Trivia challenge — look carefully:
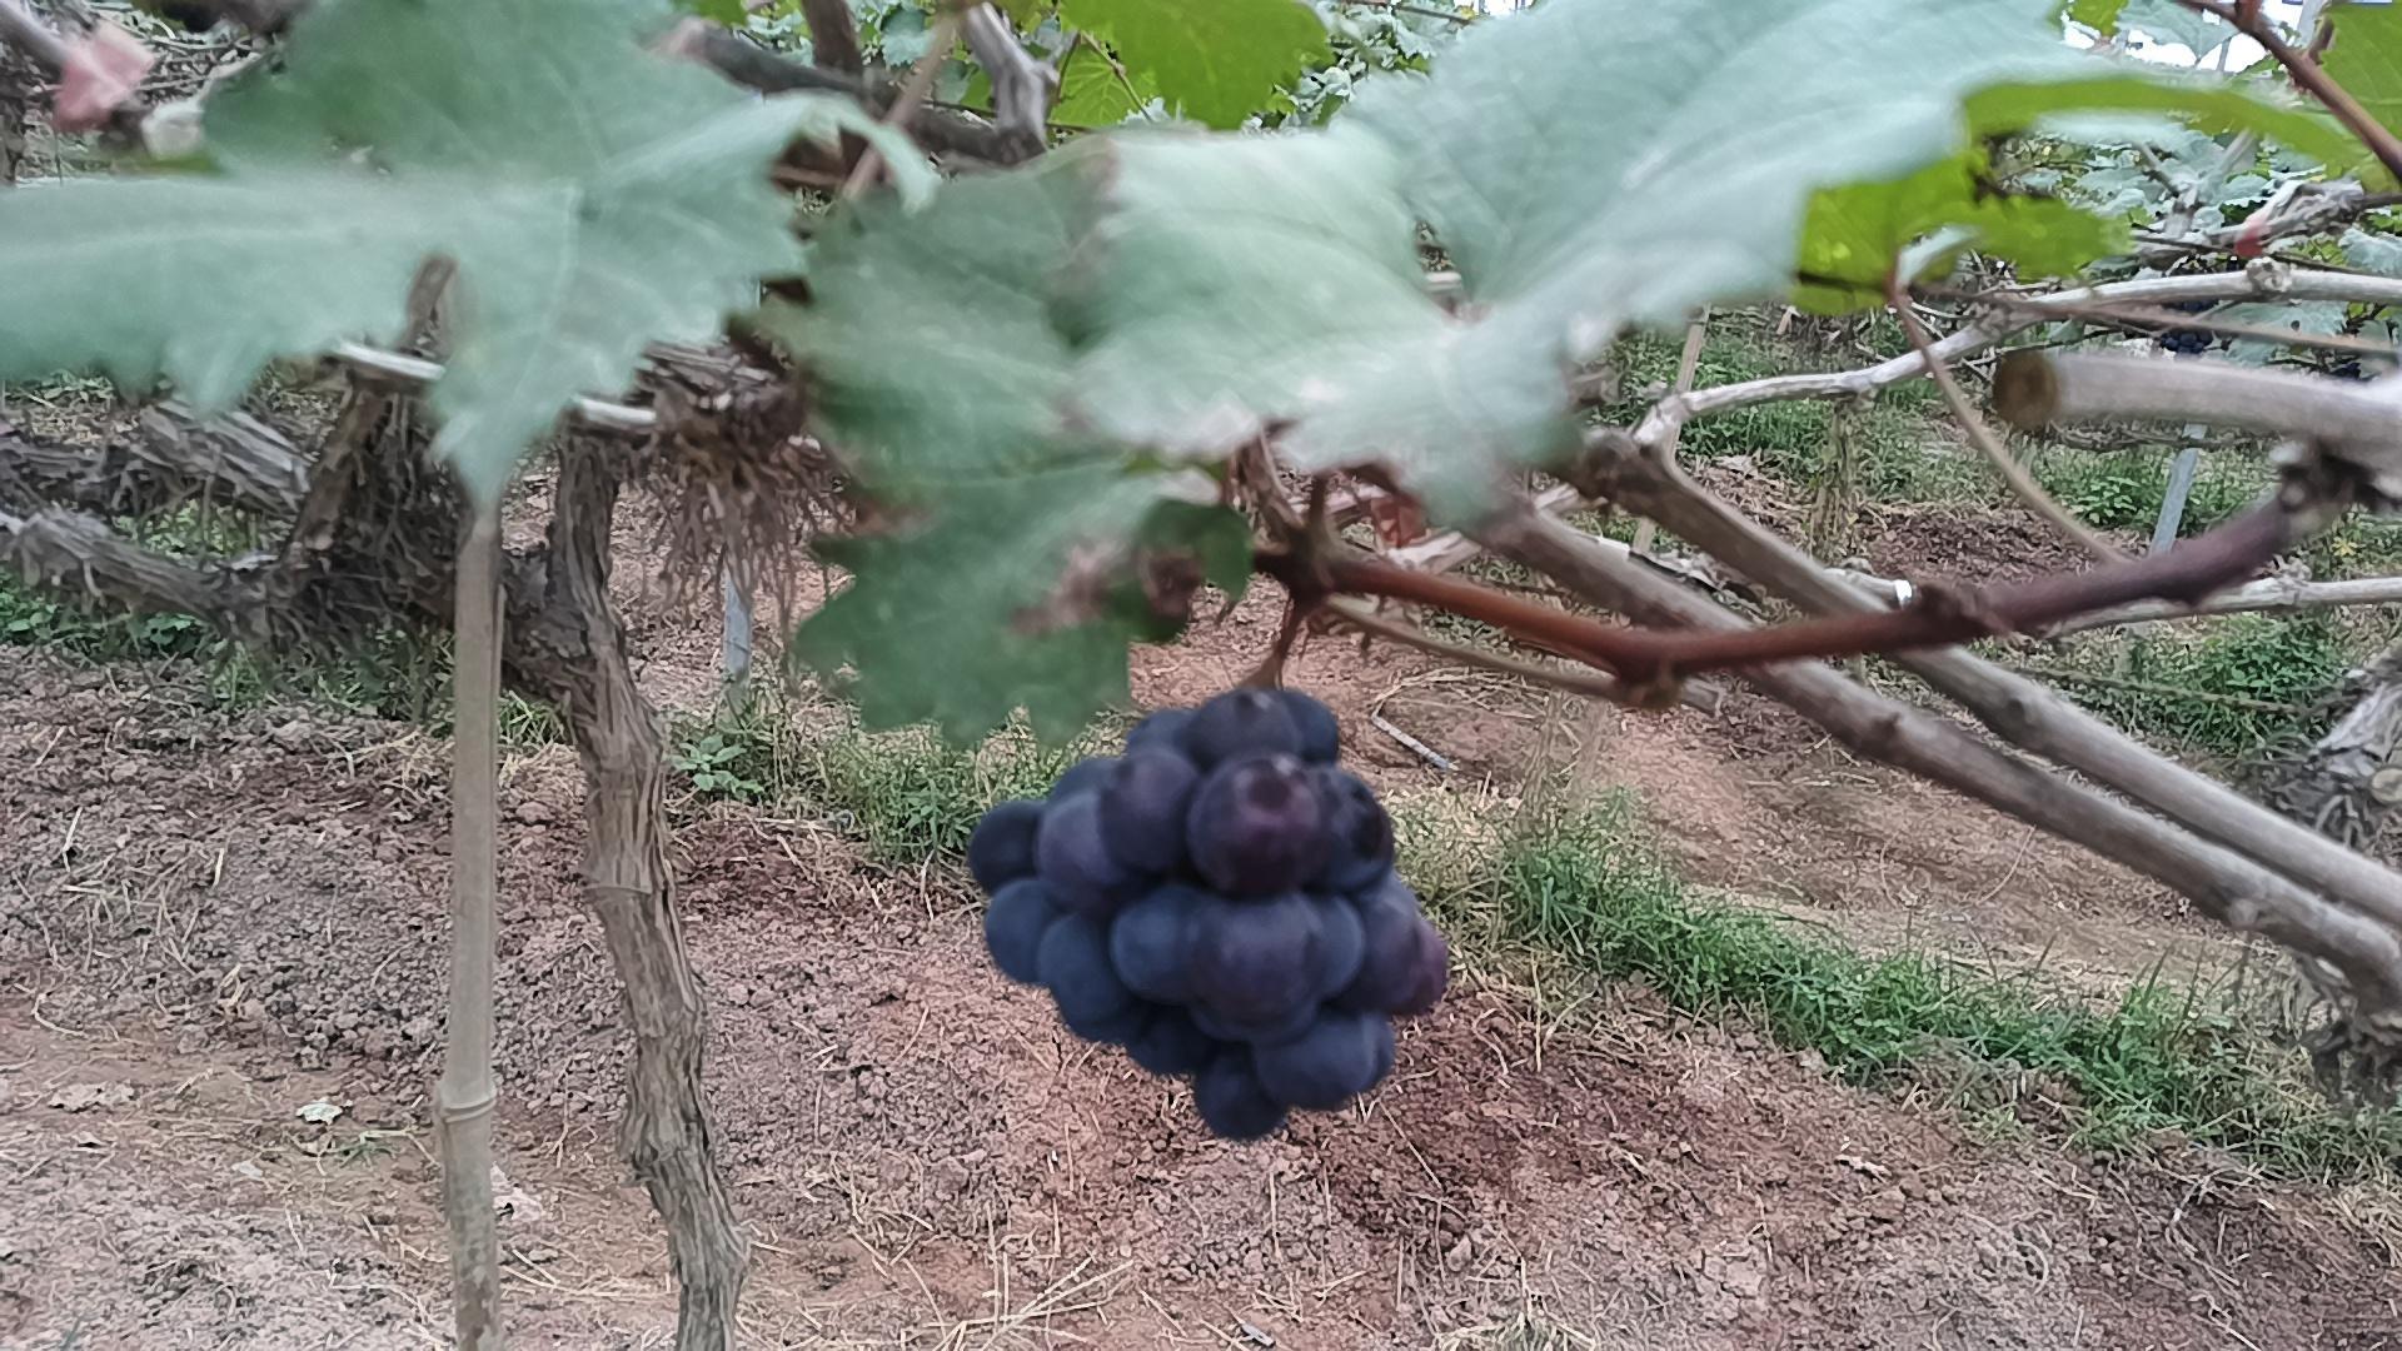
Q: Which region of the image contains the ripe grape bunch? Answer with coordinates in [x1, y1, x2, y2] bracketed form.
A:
[968, 686, 1447, 1137]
